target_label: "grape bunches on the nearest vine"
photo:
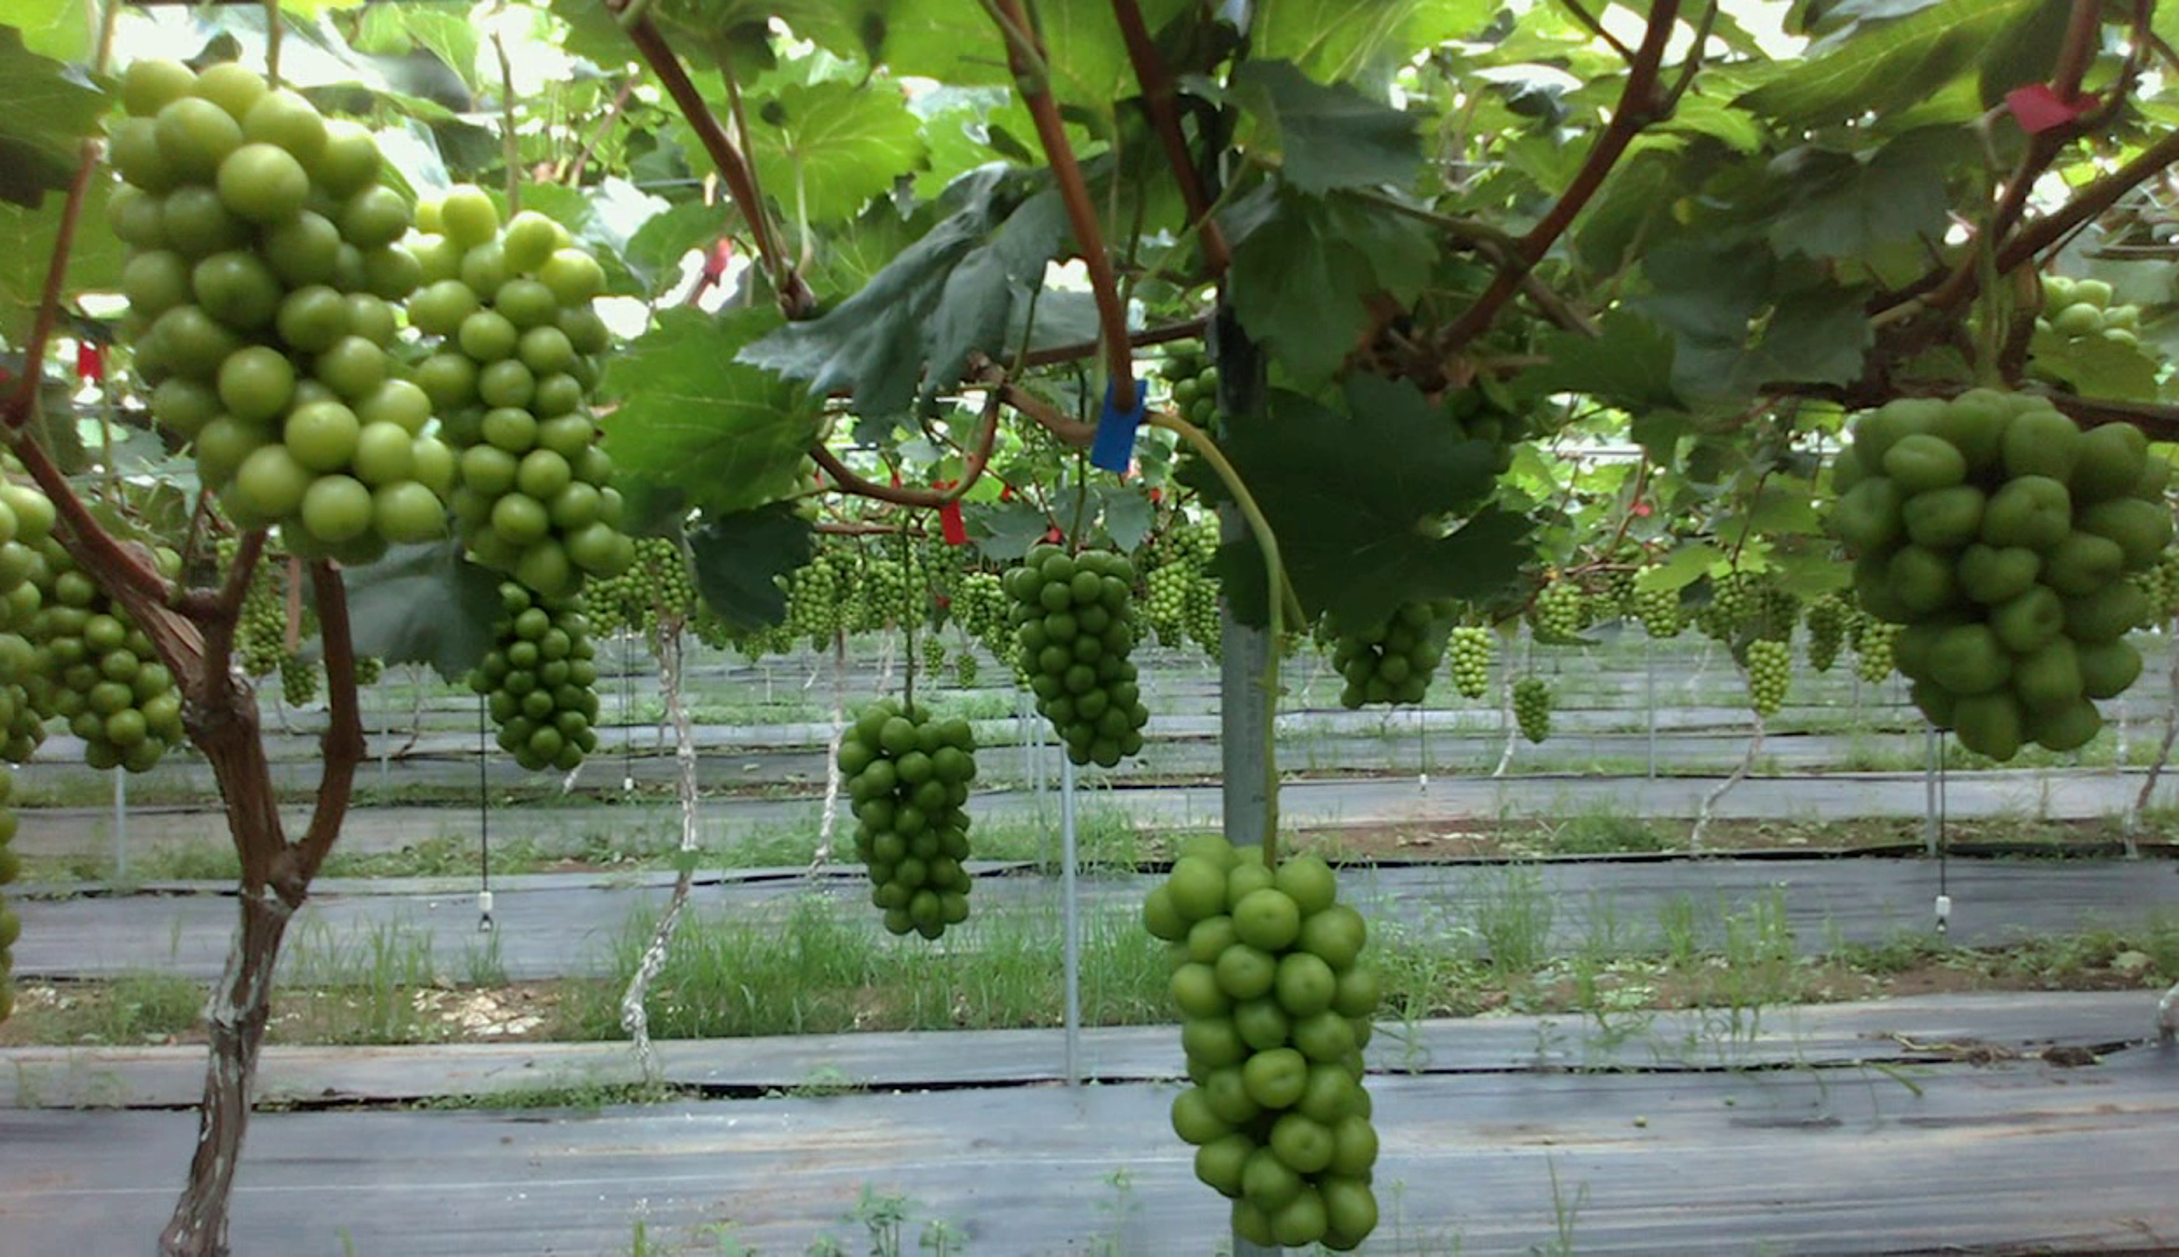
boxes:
[101,52,454,566]
[1828,388,2174,763]
[407,183,634,601]
[1138,833,1385,1254]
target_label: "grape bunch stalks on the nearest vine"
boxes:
[1957,103,2011,391]
[264,0,283,94]
[487,26,519,222]
[1135,409,1290,875]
